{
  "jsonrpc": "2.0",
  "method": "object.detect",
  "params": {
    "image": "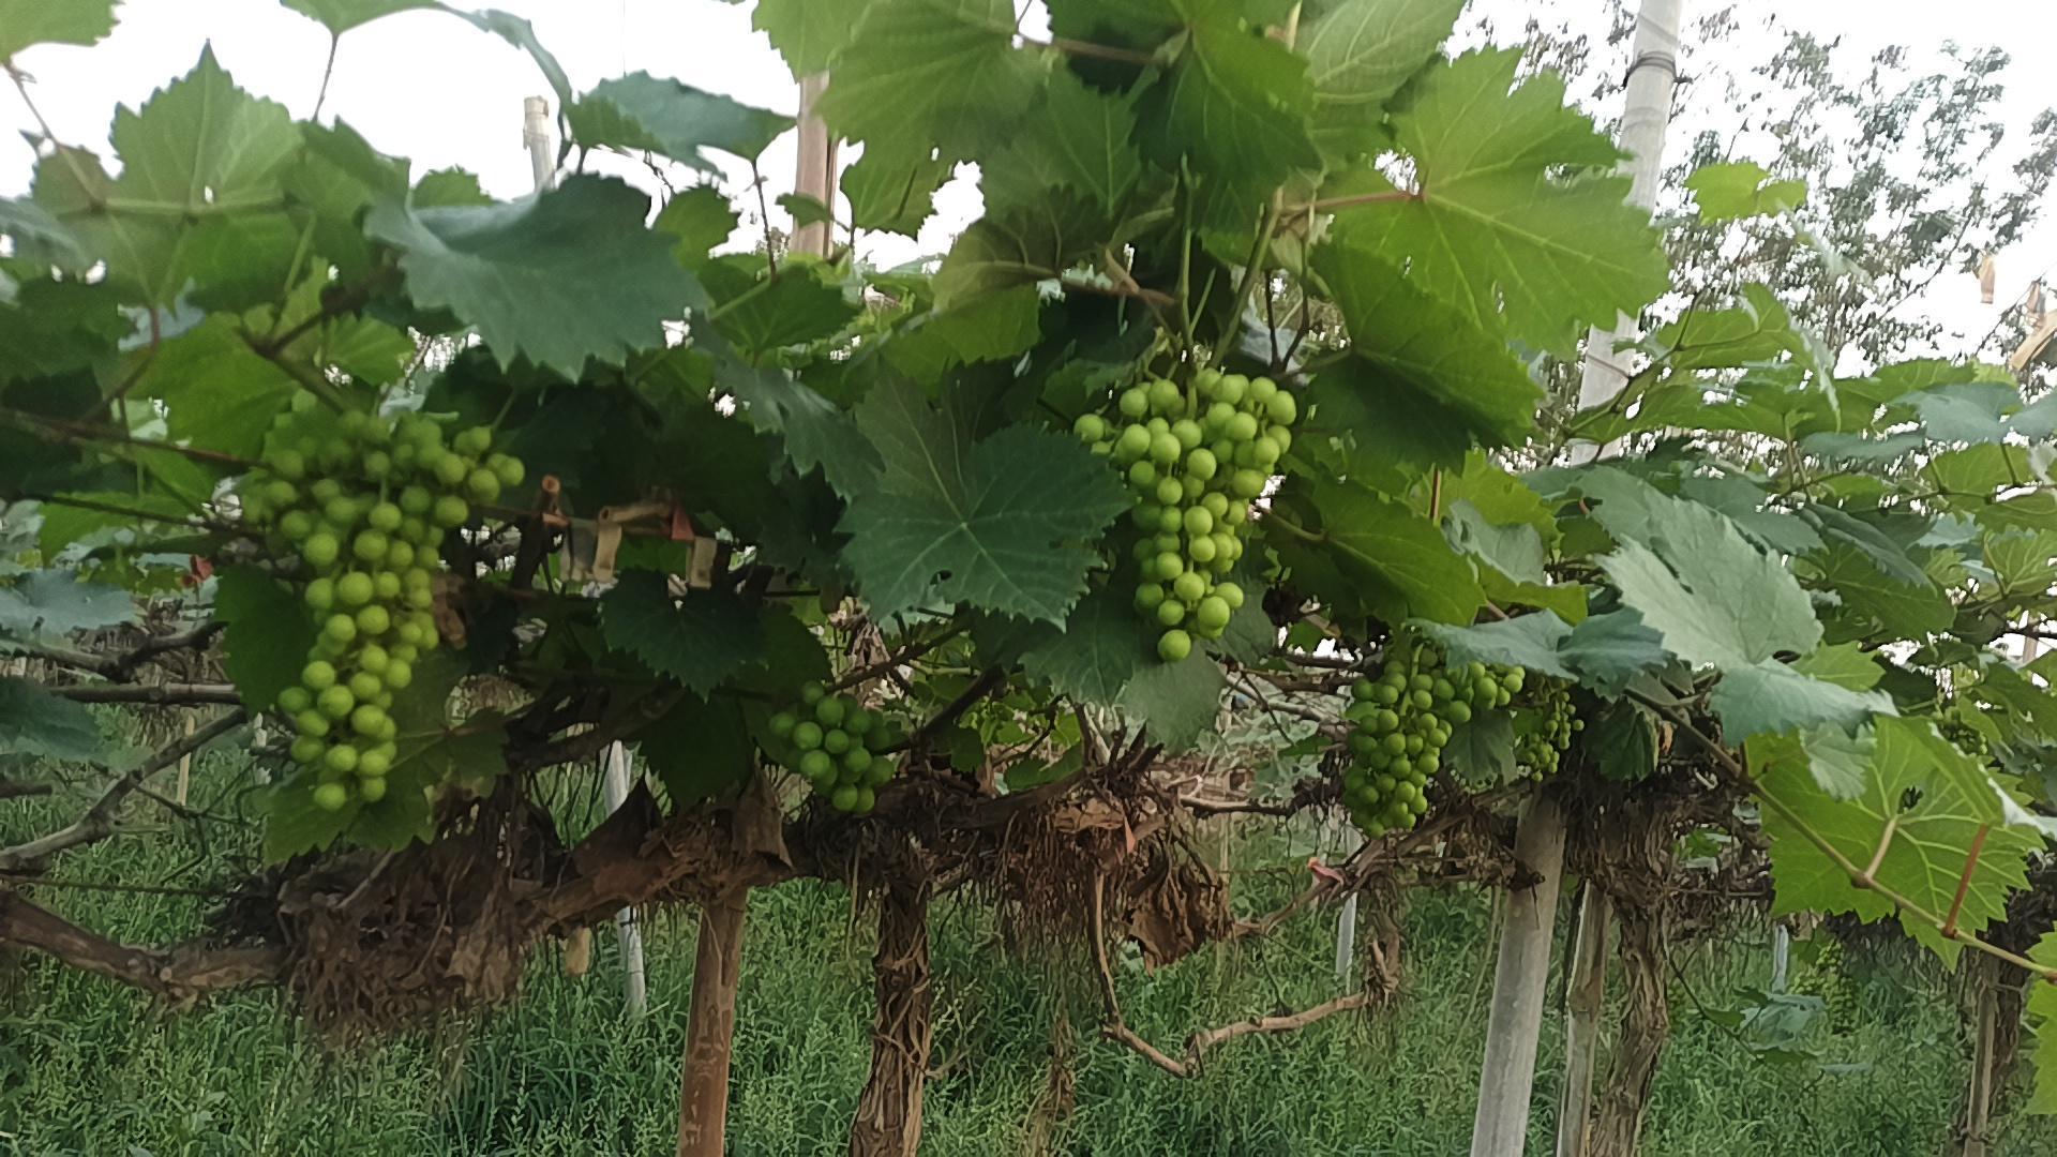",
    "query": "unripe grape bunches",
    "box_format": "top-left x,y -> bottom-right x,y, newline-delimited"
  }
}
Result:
768,685 -> 898,812
1073,369 -> 1292,662
1343,642 -> 1525,835
241,411 -> 524,811
1517,688 -> 1583,781
1932,704 -> 1986,755
1792,937 -> 1861,1034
